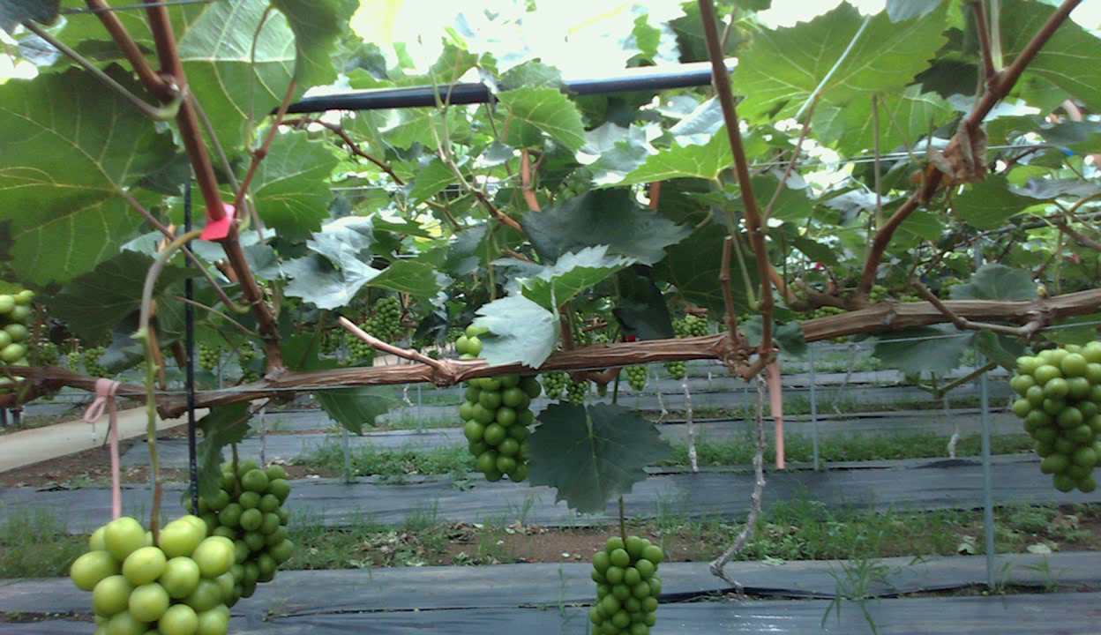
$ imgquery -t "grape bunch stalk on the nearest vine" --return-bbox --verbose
[139,229,202,547]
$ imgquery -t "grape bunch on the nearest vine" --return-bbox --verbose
[71,514,235,634]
